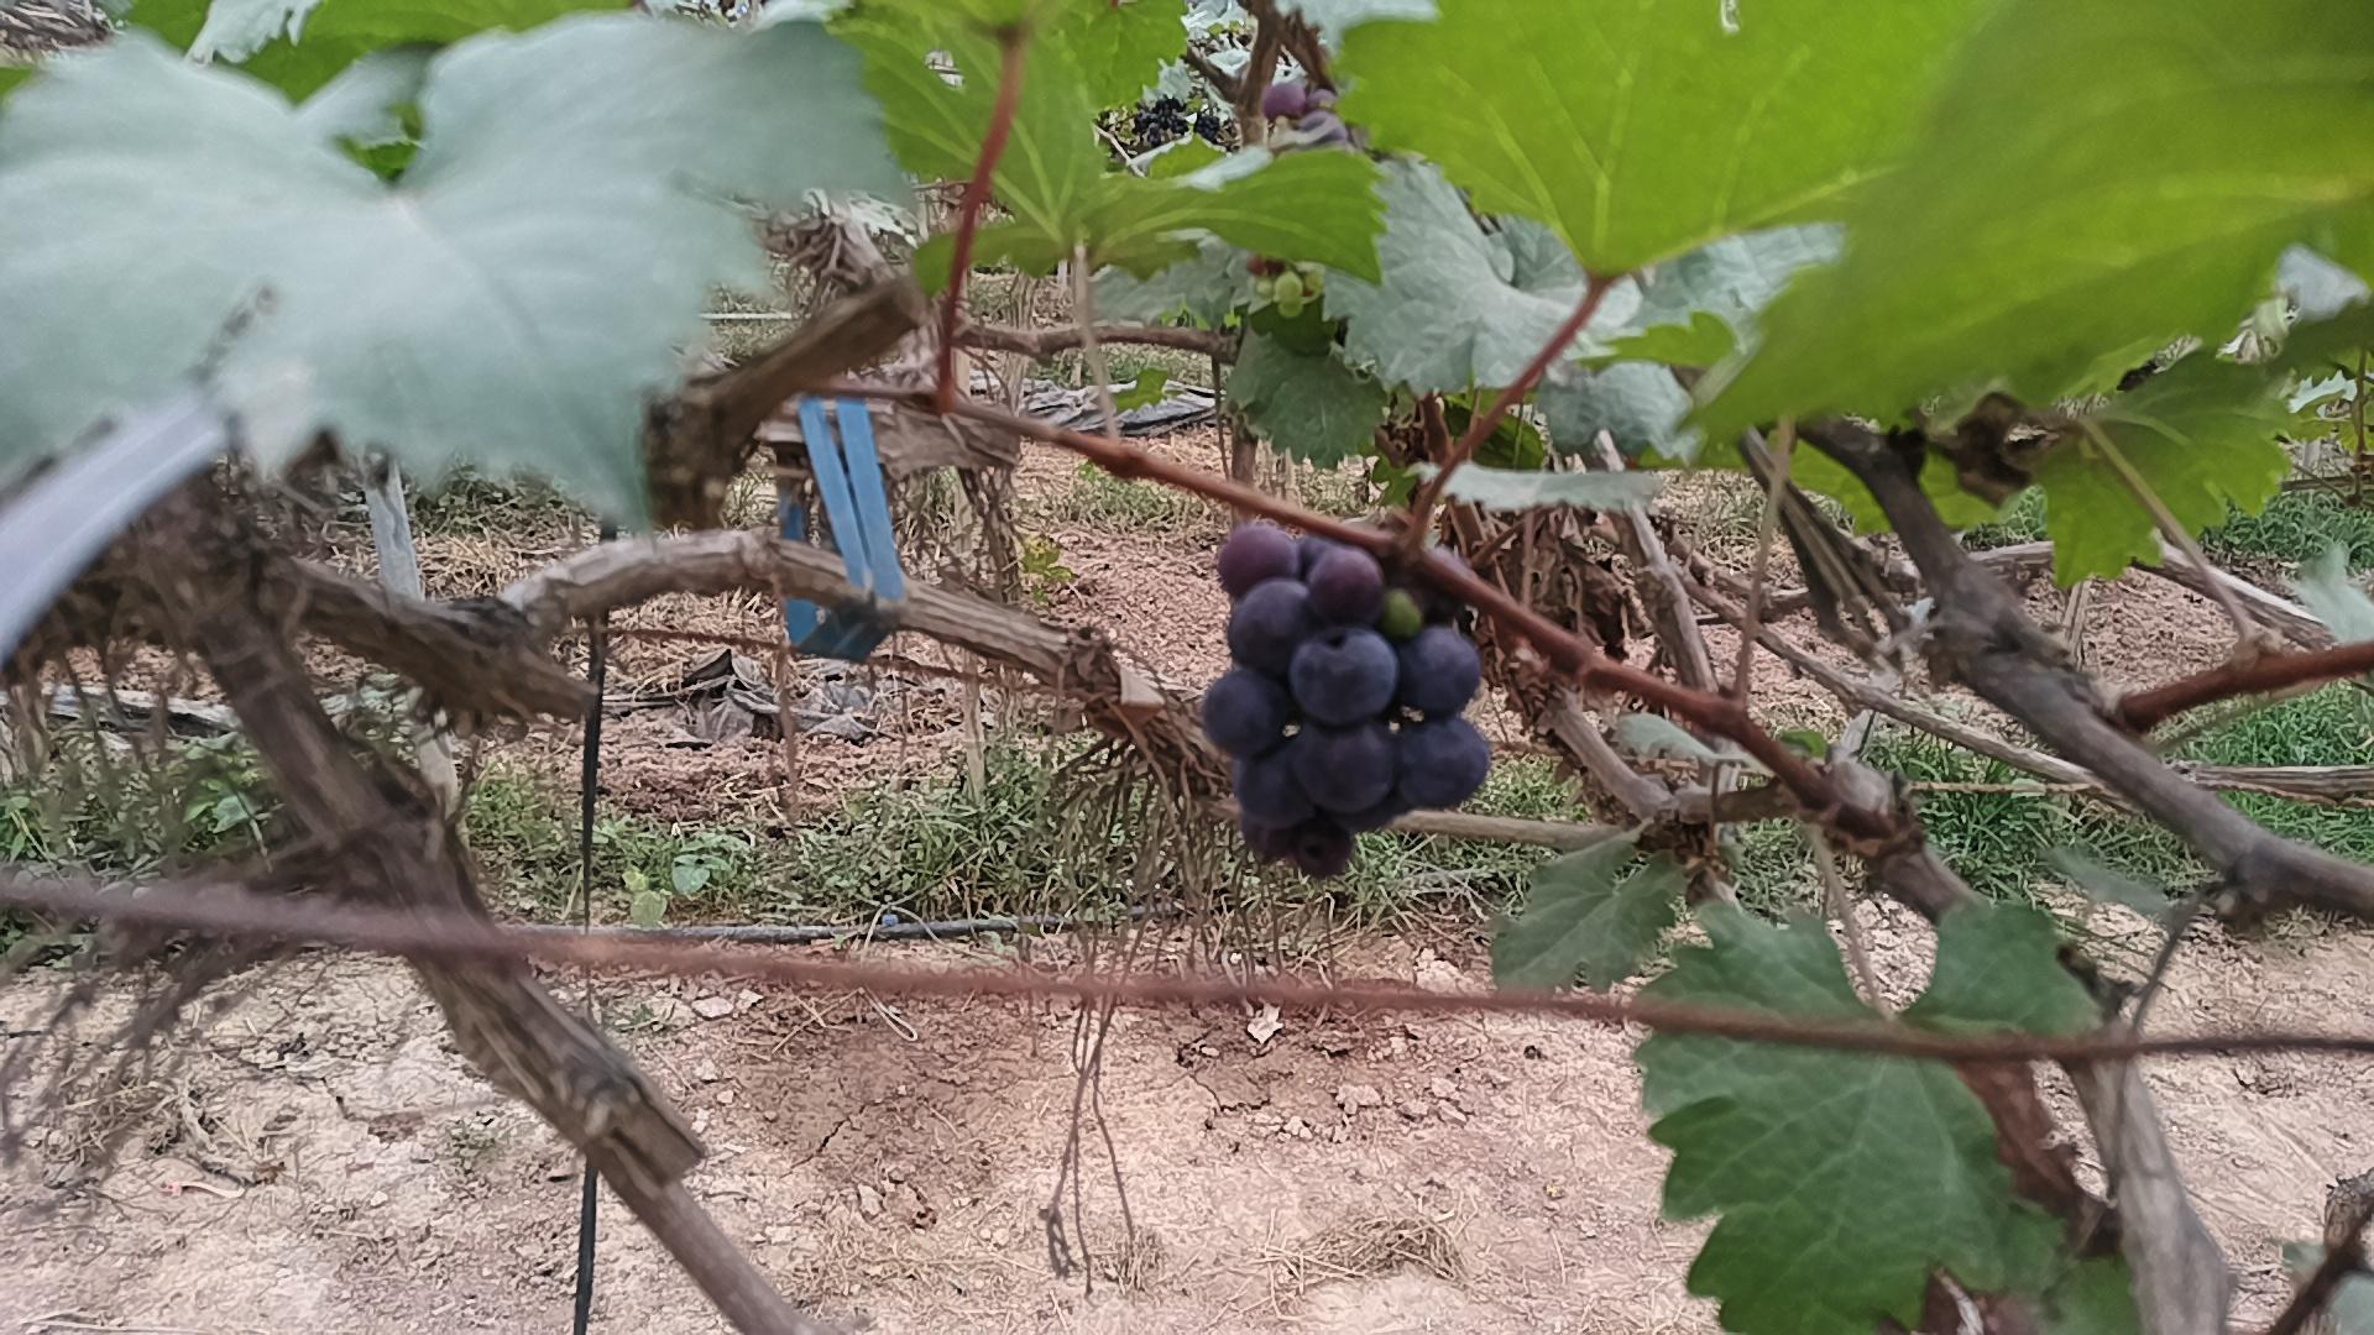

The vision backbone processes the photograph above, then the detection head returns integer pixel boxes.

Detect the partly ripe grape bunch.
[1244,82,1345,320]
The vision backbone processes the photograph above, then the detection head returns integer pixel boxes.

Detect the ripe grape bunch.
[1202,522,1489,874]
